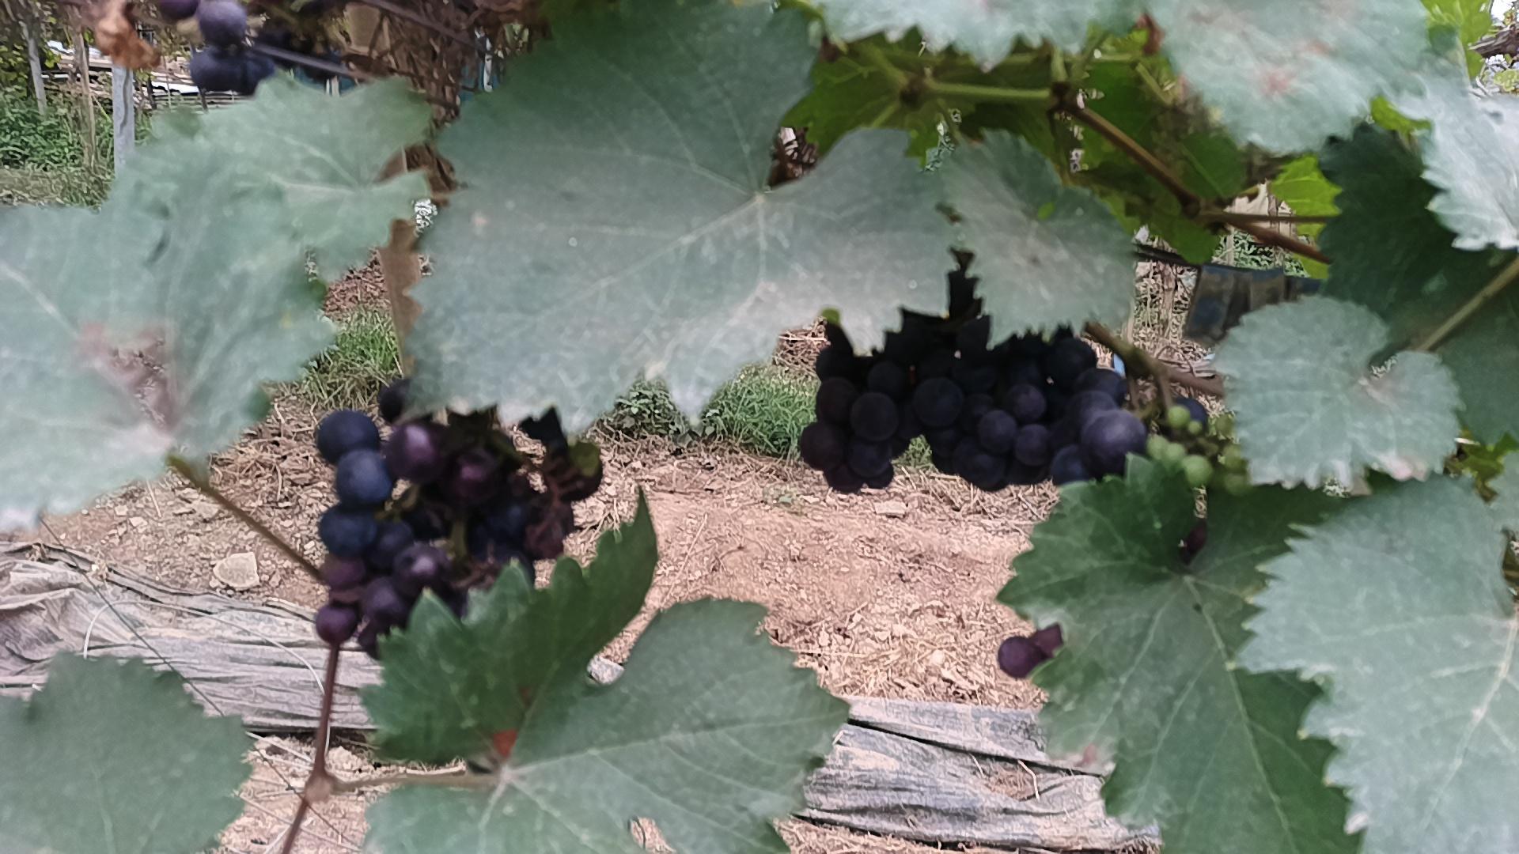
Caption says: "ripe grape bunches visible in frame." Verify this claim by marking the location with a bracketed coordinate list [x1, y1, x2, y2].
[157, 0, 341, 96]
[997, 624, 1064, 679]
[315, 380, 602, 657]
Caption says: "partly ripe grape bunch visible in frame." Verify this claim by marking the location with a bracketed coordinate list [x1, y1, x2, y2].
[798, 250, 1250, 497]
